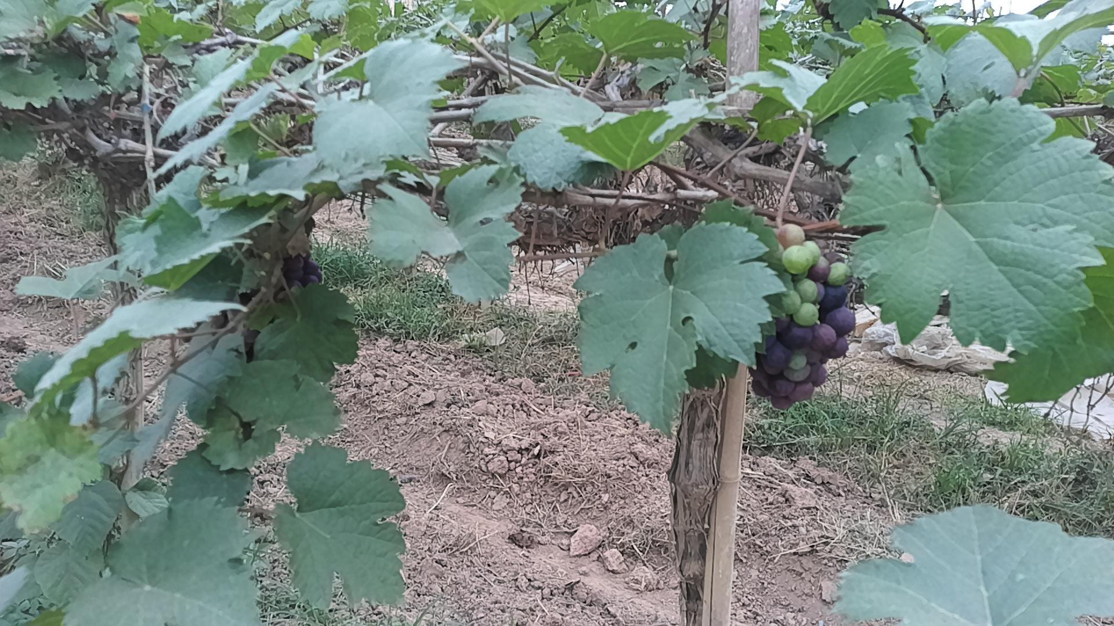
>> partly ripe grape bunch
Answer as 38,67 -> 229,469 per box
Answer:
750,224 -> 855,409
